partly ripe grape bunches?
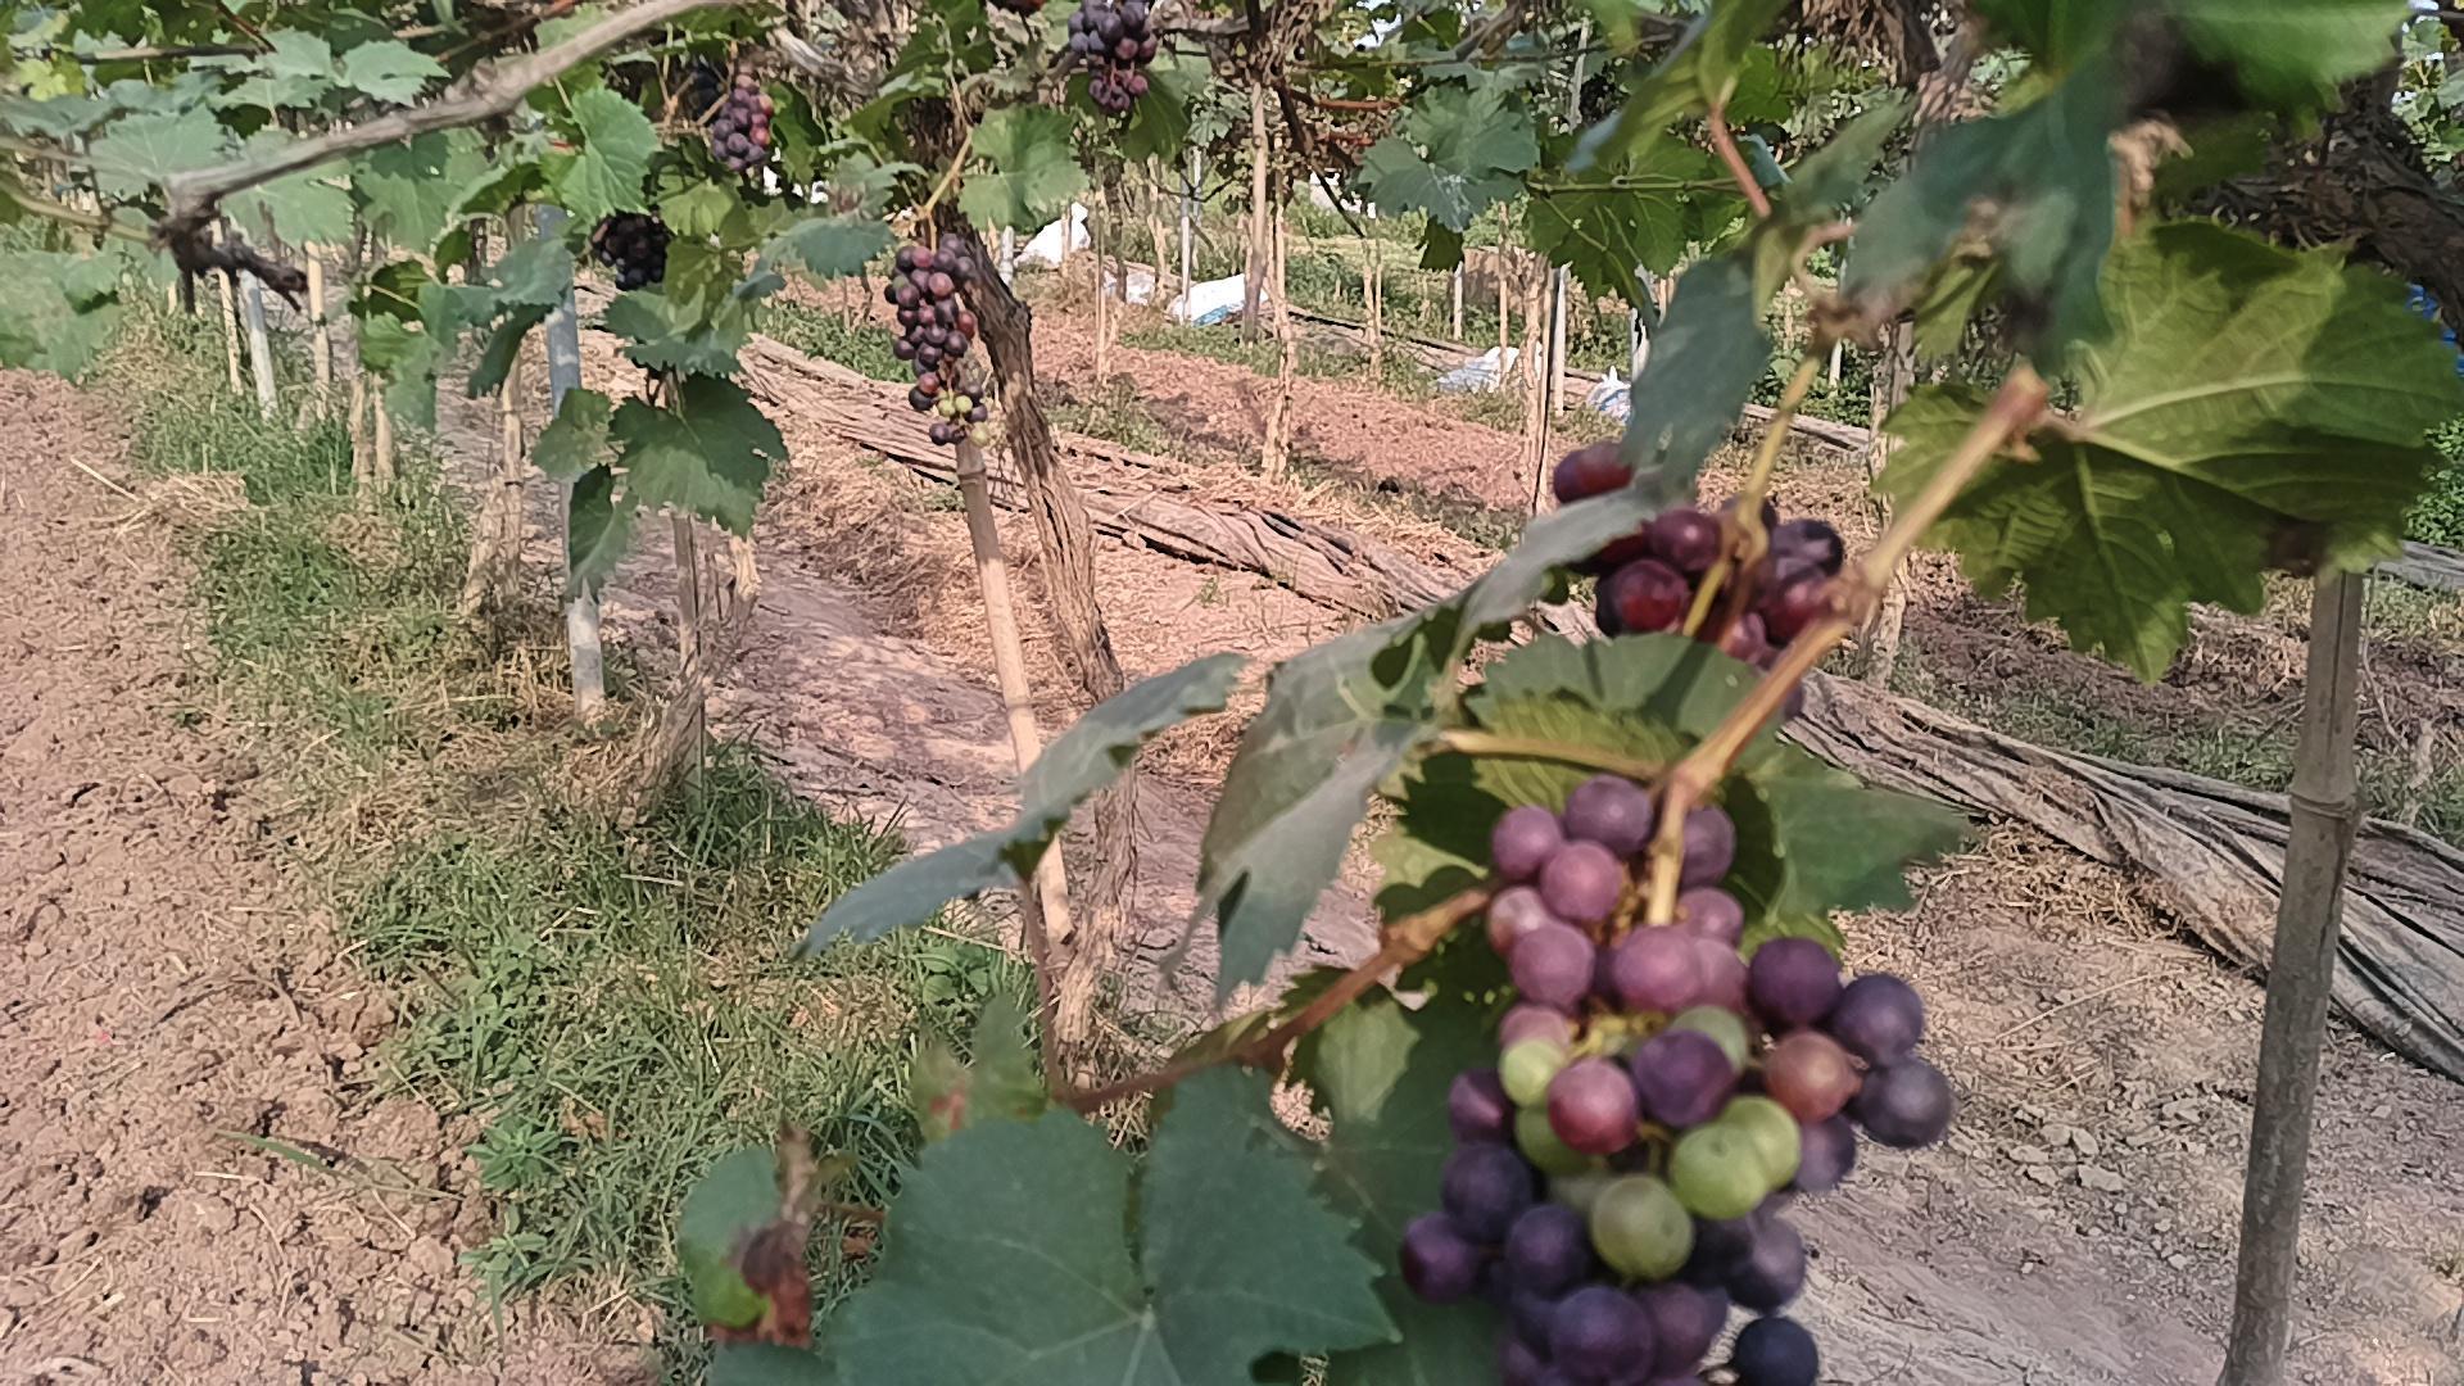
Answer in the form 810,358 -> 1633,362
1555,441 -> 1849,724
1399,775 -> 1956,1383
886,234 -> 989,444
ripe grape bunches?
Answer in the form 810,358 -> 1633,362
595,210 -> 675,382
1070,0 -> 1156,117
692,32 -> 774,171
